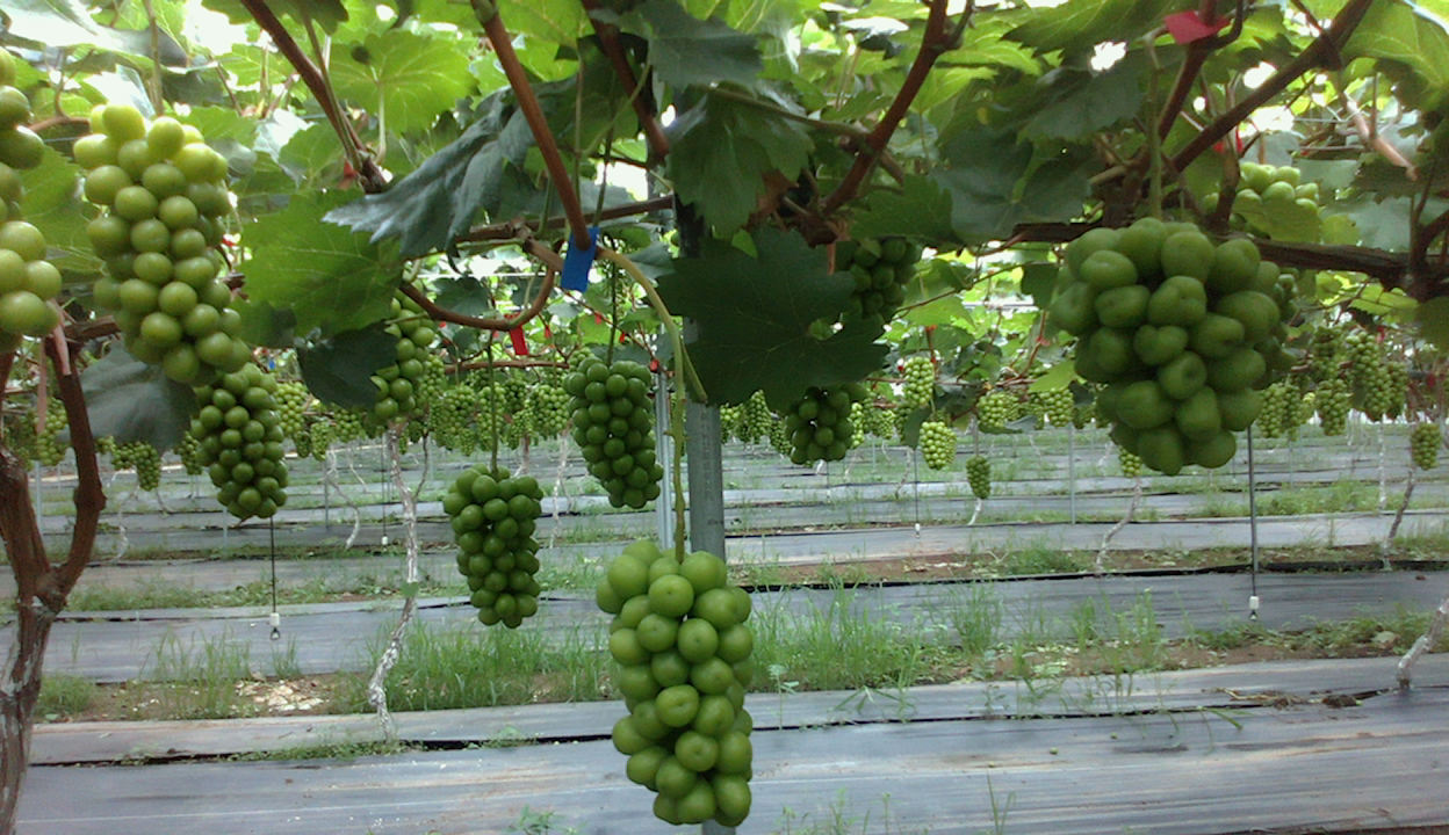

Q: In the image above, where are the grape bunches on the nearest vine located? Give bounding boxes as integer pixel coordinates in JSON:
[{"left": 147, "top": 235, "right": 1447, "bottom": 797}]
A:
[
  {"left": 0, "top": 48, "right": 62, "bottom": 337},
  {"left": 442, "top": 465, "right": 543, "bottom": 631},
  {"left": 72, "top": 101, "right": 253, "bottom": 384},
  {"left": 562, "top": 358, "right": 666, "bottom": 509},
  {"left": 1047, "top": 218, "right": 1278, "bottom": 477},
  {"left": 594, "top": 538, "right": 754, "bottom": 827}
]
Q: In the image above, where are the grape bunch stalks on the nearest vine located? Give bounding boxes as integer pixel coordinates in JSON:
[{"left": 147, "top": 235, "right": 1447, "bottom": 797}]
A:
[
  {"left": 1141, "top": 27, "right": 1169, "bottom": 220},
  {"left": 607, "top": 262, "right": 617, "bottom": 364},
  {"left": 143, "top": 1, "right": 165, "bottom": 118},
  {"left": 488, "top": 329, "right": 498, "bottom": 473},
  {"left": 593, "top": 247, "right": 685, "bottom": 566}
]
